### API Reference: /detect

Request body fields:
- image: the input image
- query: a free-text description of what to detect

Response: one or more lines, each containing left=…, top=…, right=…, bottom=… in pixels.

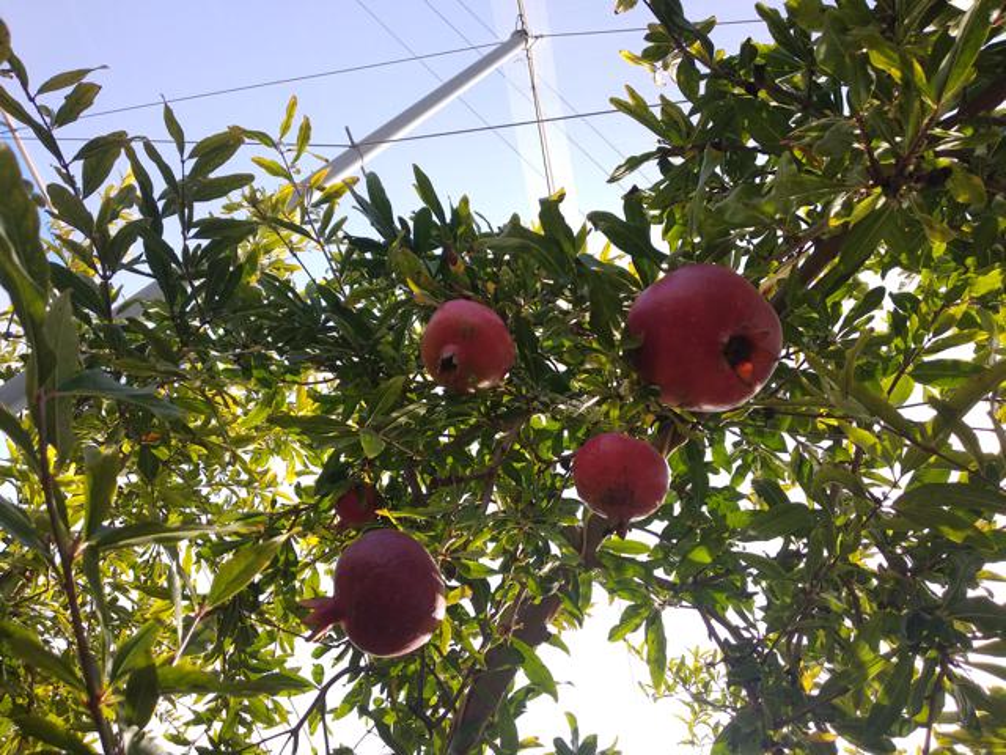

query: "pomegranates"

left=574, top=433, right=670, bottom=541
left=421, top=299, right=516, bottom=387
left=335, top=489, right=377, bottom=528
left=629, top=264, right=783, bottom=414
left=299, top=528, right=448, bottom=657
